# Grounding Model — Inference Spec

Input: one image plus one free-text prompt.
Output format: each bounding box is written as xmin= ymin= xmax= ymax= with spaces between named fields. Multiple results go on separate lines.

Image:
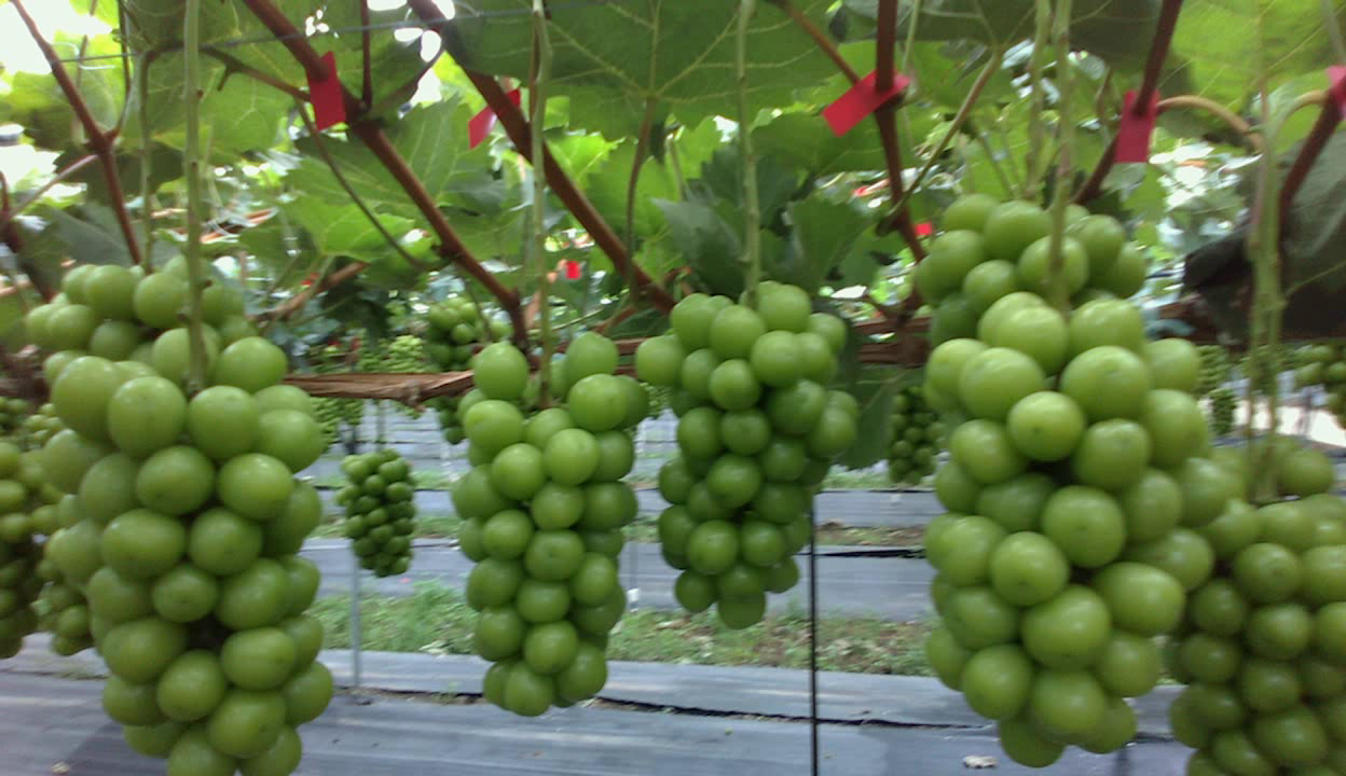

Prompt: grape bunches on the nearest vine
xmin=452 ymin=331 xmax=649 ymax=717
xmin=1164 ymin=436 xmax=1344 ymax=775
xmin=633 ymin=279 xmax=862 ymax=630
xmin=41 ymin=324 xmax=333 ymax=775
xmin=912 ymin=193 xmax=1228 ymax=770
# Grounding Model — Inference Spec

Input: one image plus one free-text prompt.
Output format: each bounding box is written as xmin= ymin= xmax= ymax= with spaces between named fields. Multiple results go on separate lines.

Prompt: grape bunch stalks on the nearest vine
xmin=732 ymin=2 xmax=761 ymax=310
xmin=532 ymin=0 xmax=553 ymax=411
xmin=176 ymin=0 xmax=211 ymax=397
xmin=1049 ymin=0 xmax=1076 ymax=323
xmin=1249 ymin=91 xmax=1326 ymax=504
